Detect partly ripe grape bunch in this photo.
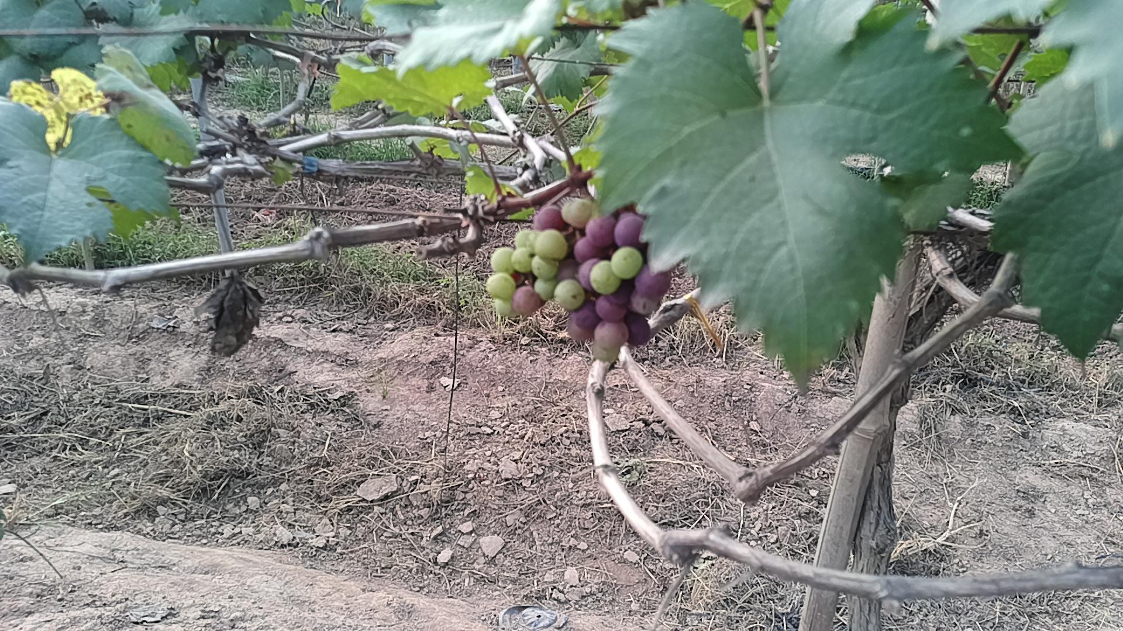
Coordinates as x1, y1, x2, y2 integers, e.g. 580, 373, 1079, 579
487, 198, 673, 353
